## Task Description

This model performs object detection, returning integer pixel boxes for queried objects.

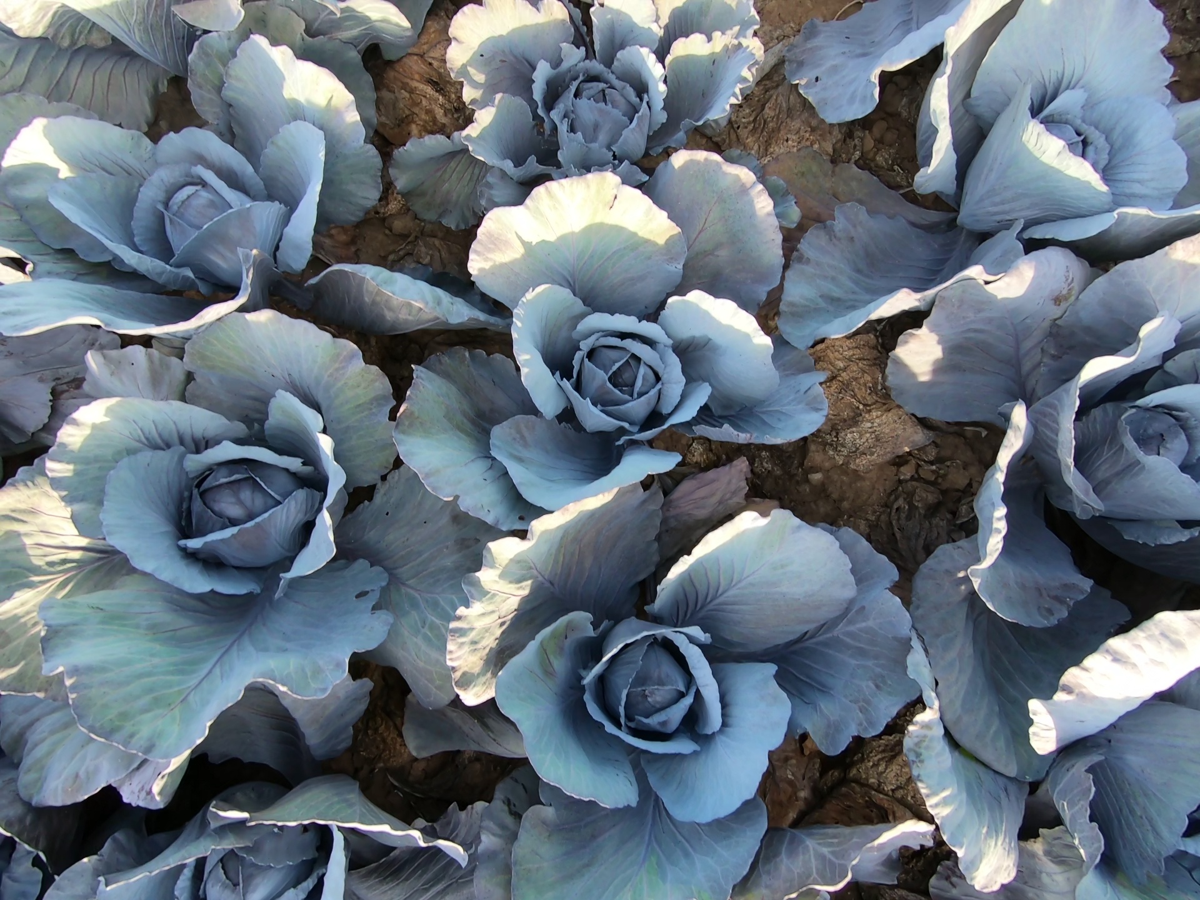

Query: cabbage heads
[592,345,654,406]
[164,183,252,265]
[1088,406,1190,489]
[1010,122,1087,197]
[202,821,306,898]
[572,83,636,150]
[194,465,303,566]
[1094,704,1196,821]
[609,641,695,729]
